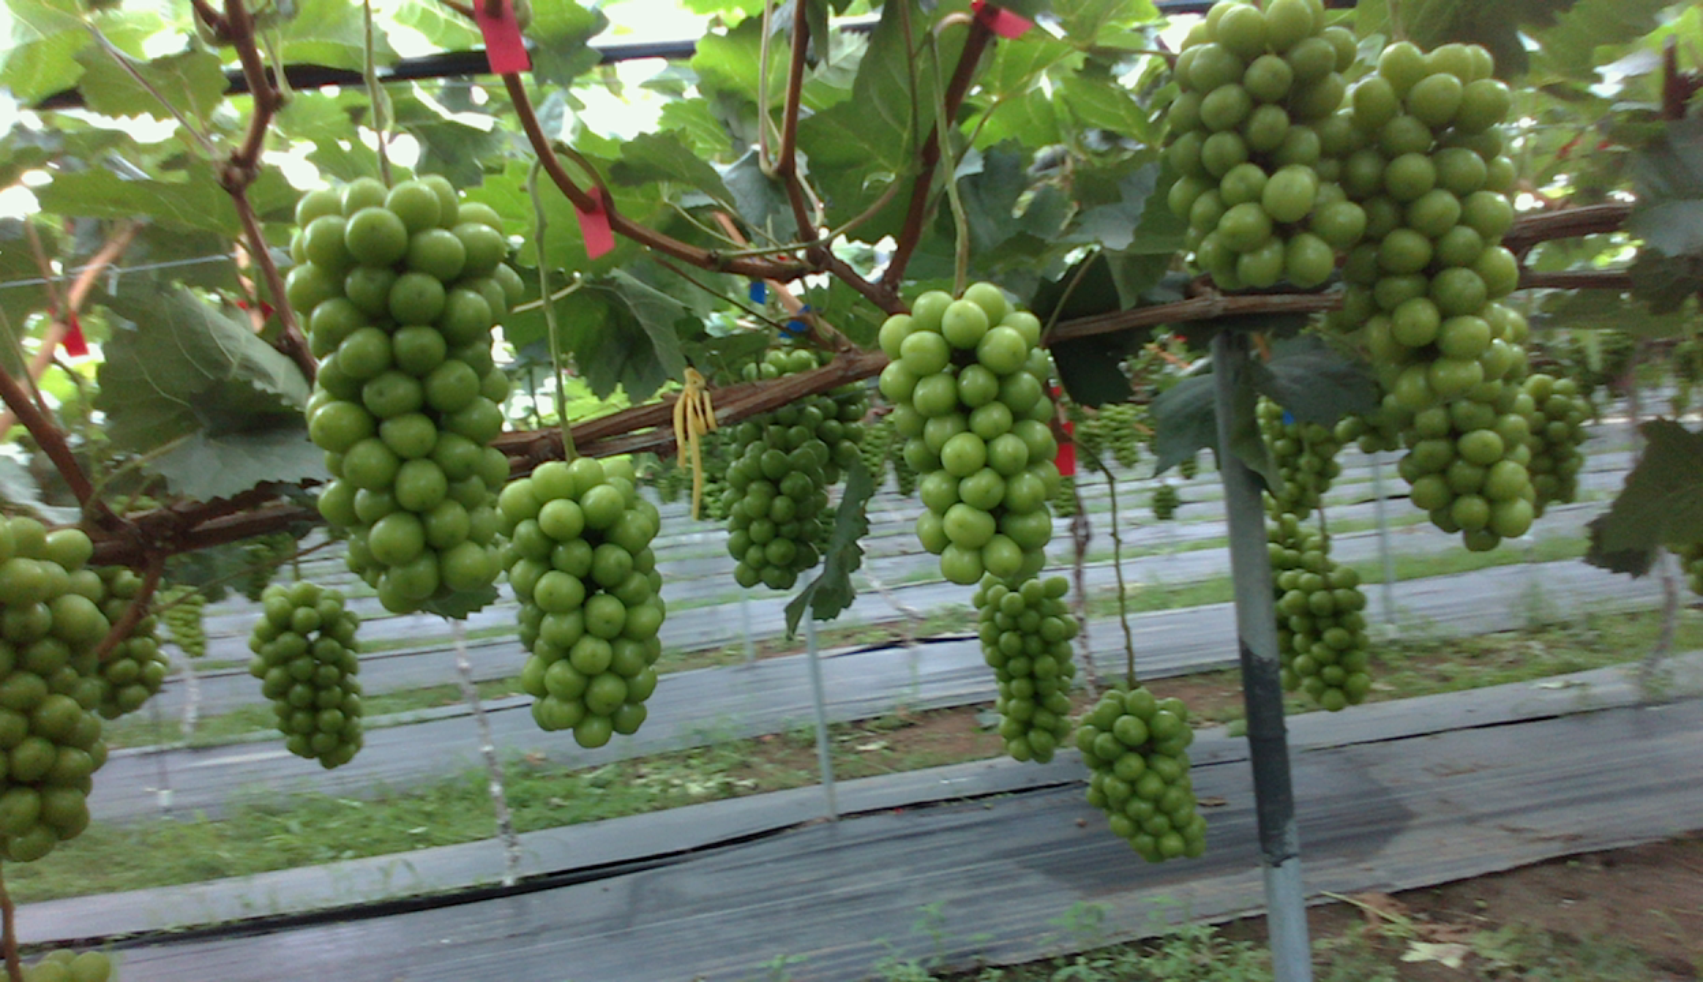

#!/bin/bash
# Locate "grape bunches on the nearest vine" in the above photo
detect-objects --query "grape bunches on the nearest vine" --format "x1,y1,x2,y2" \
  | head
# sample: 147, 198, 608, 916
1400, 310, 1539, 550
1341, 42, 1519, 411
876, 282, 1058, 585
0, 514, 106, 861
495, 454, 667, 747
1165, 0, 1363, 289
284, 173, 521, 614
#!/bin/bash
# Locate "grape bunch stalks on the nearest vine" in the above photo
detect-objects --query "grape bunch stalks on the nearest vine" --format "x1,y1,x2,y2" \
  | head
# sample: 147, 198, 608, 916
1386, 1, 1404, 40
519, 155, 577, 462
1255, 0, 1261, 5
927, 14, 969, 297
363, 1, 392, 187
